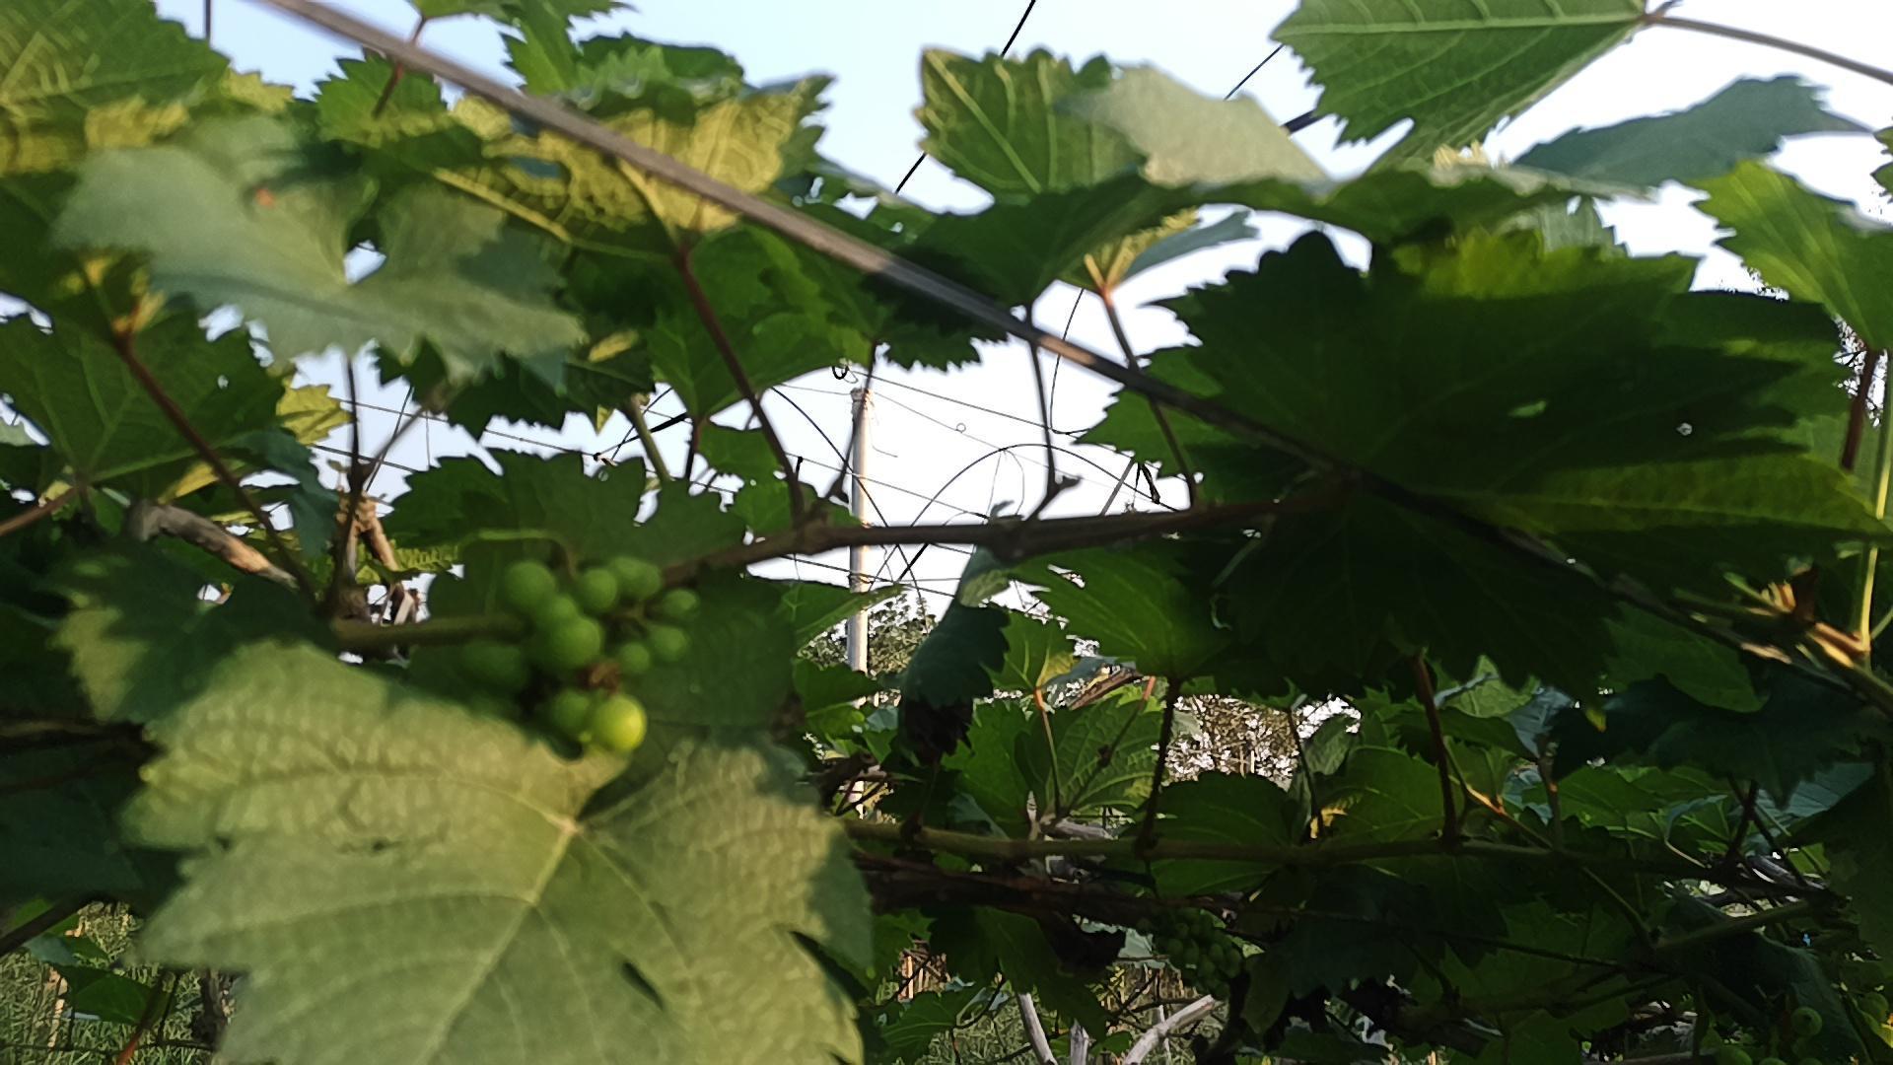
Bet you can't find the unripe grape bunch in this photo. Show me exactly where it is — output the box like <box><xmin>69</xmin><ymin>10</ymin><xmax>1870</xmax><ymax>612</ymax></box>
<box><xmin>463</xmin><ymin>557</ymin><xmax>701</xmax><ymax>753</ymax></box>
